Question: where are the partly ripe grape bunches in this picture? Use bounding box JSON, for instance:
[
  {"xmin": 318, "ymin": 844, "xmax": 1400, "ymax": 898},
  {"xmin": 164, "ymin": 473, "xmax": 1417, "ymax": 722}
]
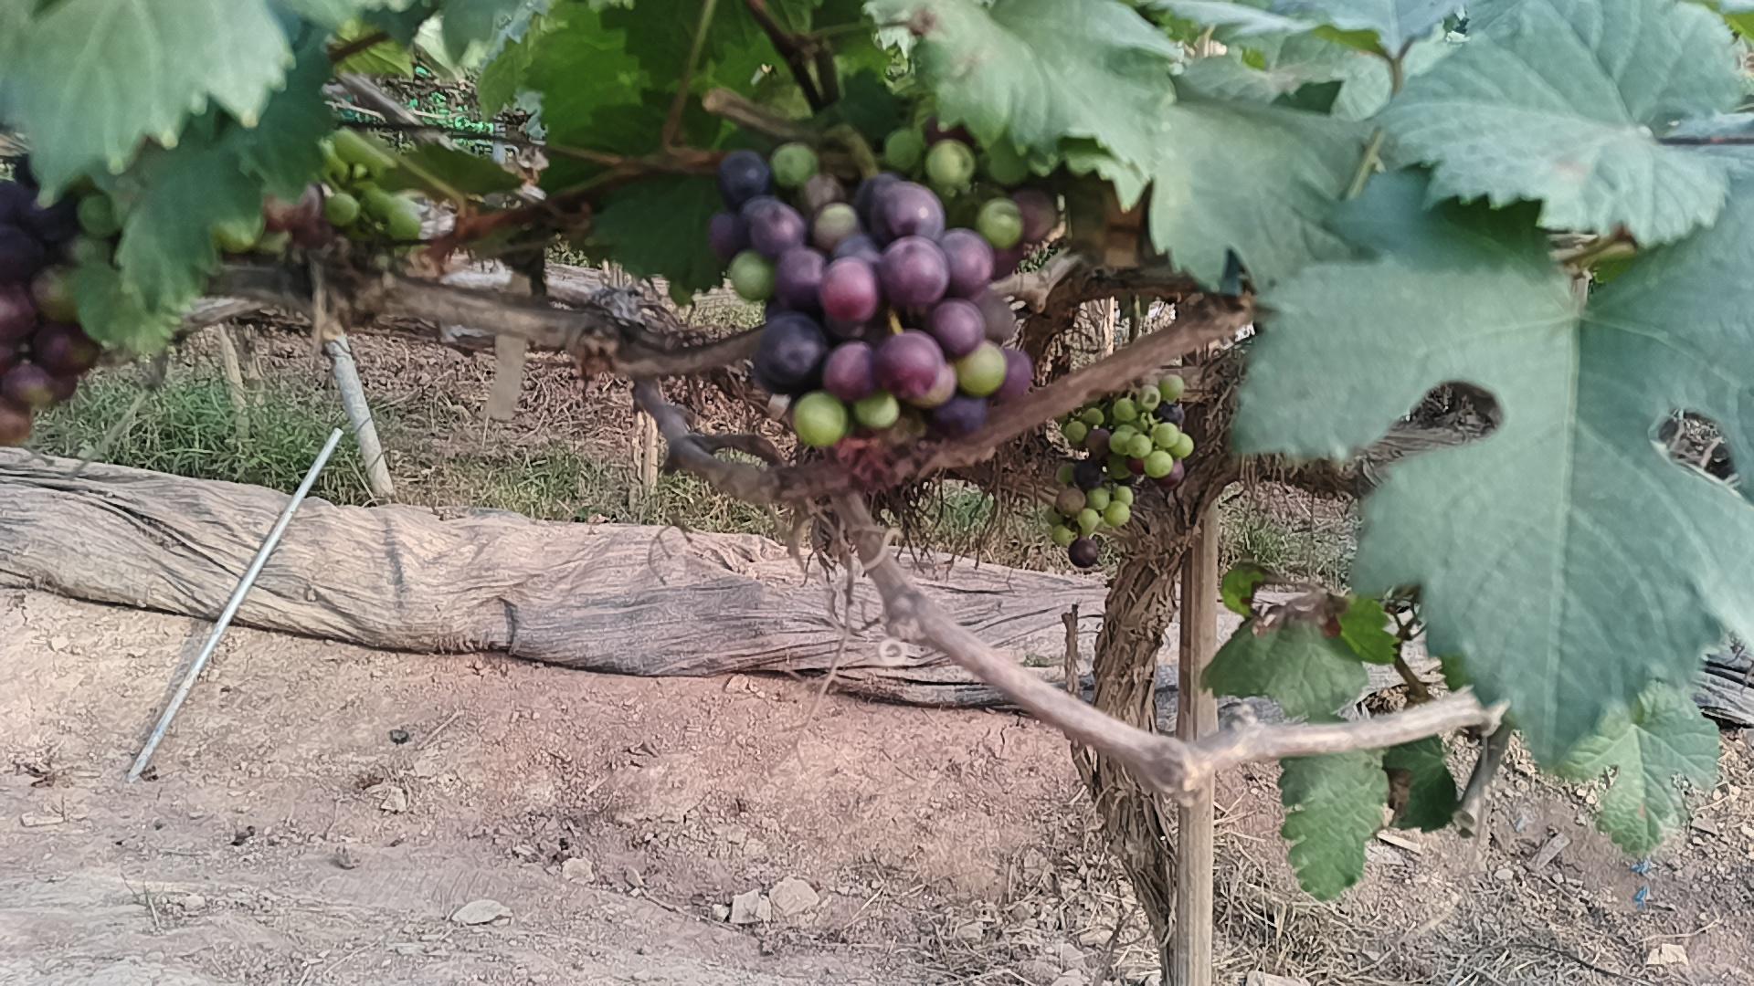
[
  {"xmin": 708, "ymin": 116, "xmax": 1057, "ymax": 446},
  {"xmin": 0, "ymin": 129, "xmax": 420, "ymax": 445},
  {"xmin": 1044, "ymin": 374, "xmax": 1193, "ymax": 568}
]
